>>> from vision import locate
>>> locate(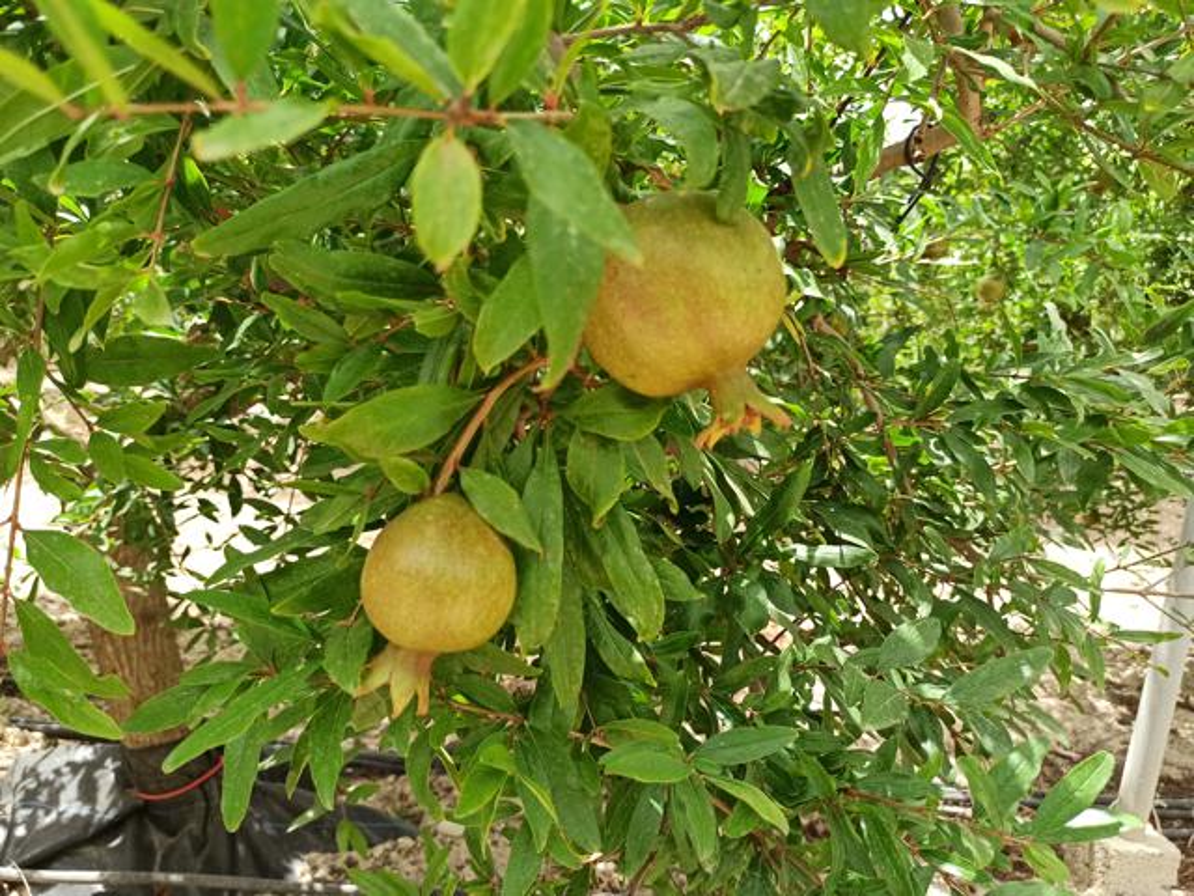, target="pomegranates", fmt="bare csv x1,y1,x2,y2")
354,491,519,719
976,278,1004,306
582,189,793,454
